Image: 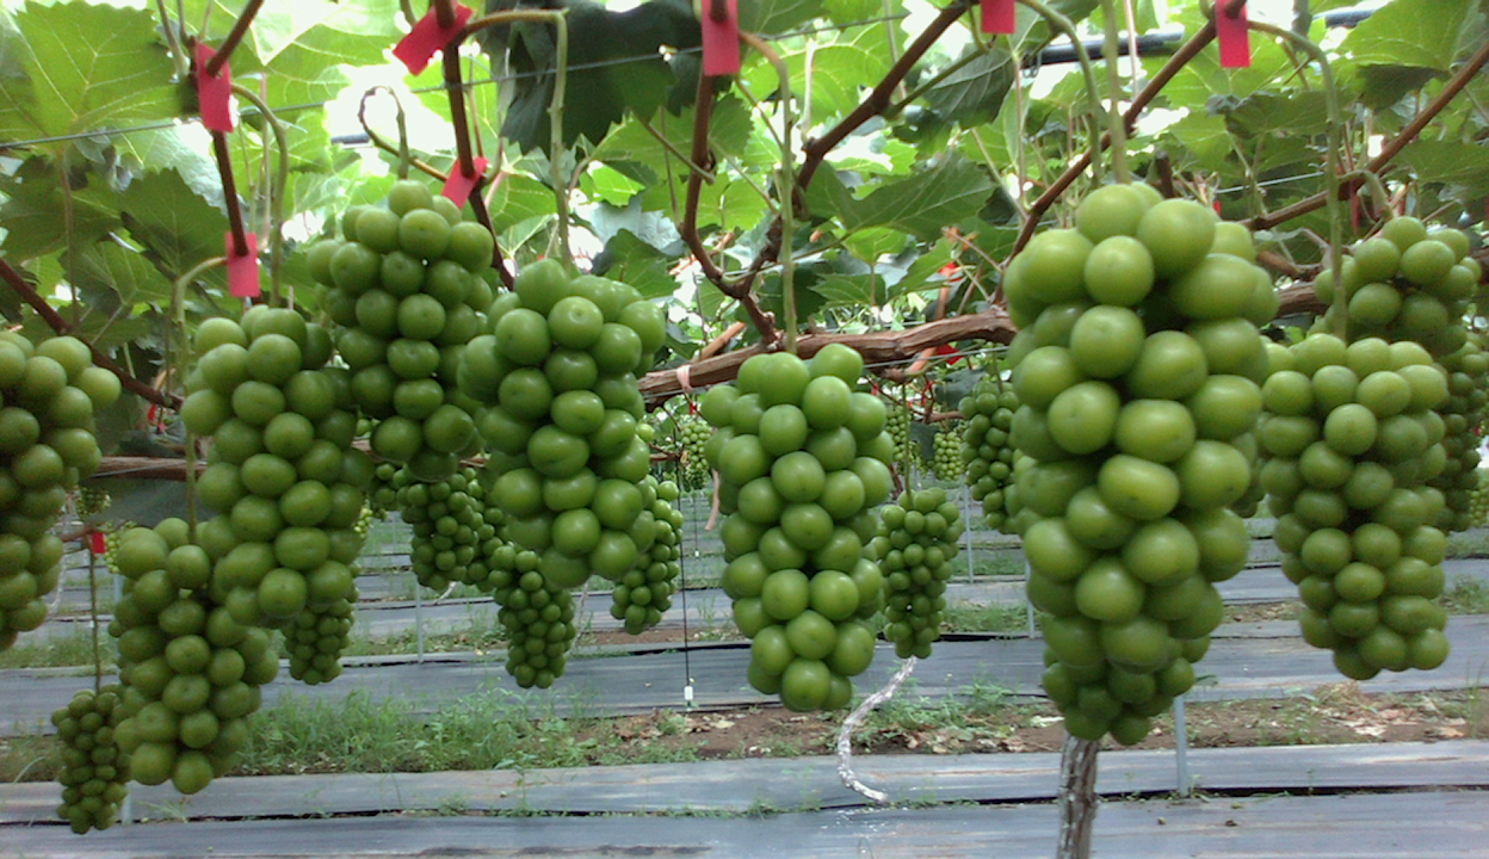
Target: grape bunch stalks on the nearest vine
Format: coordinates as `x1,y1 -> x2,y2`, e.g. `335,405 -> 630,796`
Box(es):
1247,19 -> 1347,341
1101,1 -> 1127,181
1340,167 -> 1394,228
224,80 -> 288,307
453,10 -> 571,274
739,27 -> 797,354
169,255 -> 231,545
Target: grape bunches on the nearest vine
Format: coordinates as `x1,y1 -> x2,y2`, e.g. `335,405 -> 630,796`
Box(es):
107,519 -> 278,792
1255,335 -> 1448,679
456,259 -> 666,586
1347,215 -> 1482,357
698,342 -> 895,711
0,328 -> 121,650
1003,181 -> 1283,743
179,304 -> 373,629
305,178 -> 495,480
